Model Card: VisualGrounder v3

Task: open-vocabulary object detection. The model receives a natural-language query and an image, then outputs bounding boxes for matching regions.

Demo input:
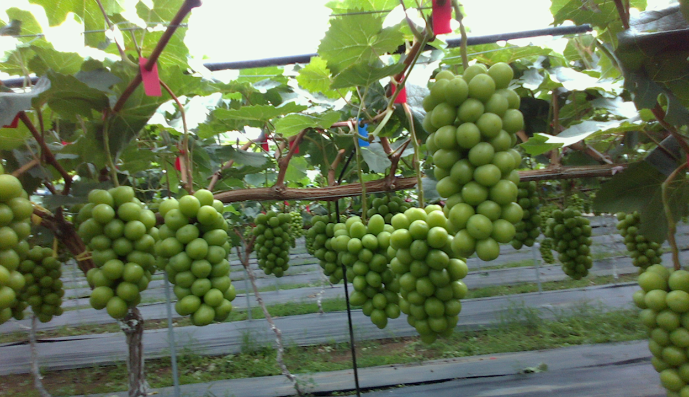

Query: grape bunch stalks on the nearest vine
[404,104,423,208]
[452,0,469,68]
[103,116,119,187]
[661,162,686,270]
[161,82,193,194]
[354,138,367,223]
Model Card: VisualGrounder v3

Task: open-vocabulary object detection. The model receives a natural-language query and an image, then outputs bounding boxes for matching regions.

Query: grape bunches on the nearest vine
[390,205,469,344]
[0,164,34,325]
[422,62,524,261]
[330,213,400,329]
[79,186,160,319]
[153,188,237,327]
[634,264,688,396]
